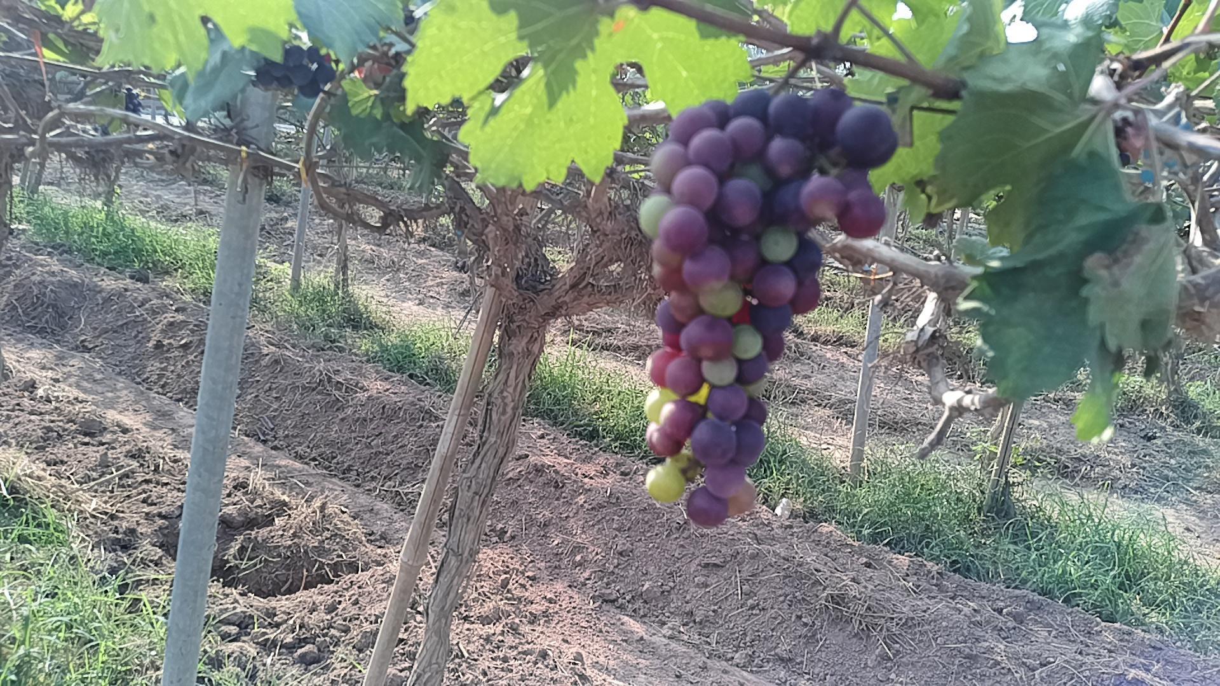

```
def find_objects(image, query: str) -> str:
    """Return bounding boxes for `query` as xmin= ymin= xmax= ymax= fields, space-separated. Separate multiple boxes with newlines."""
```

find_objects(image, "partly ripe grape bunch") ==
xmin=640 ymin=89 xmax=897 ymax=526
